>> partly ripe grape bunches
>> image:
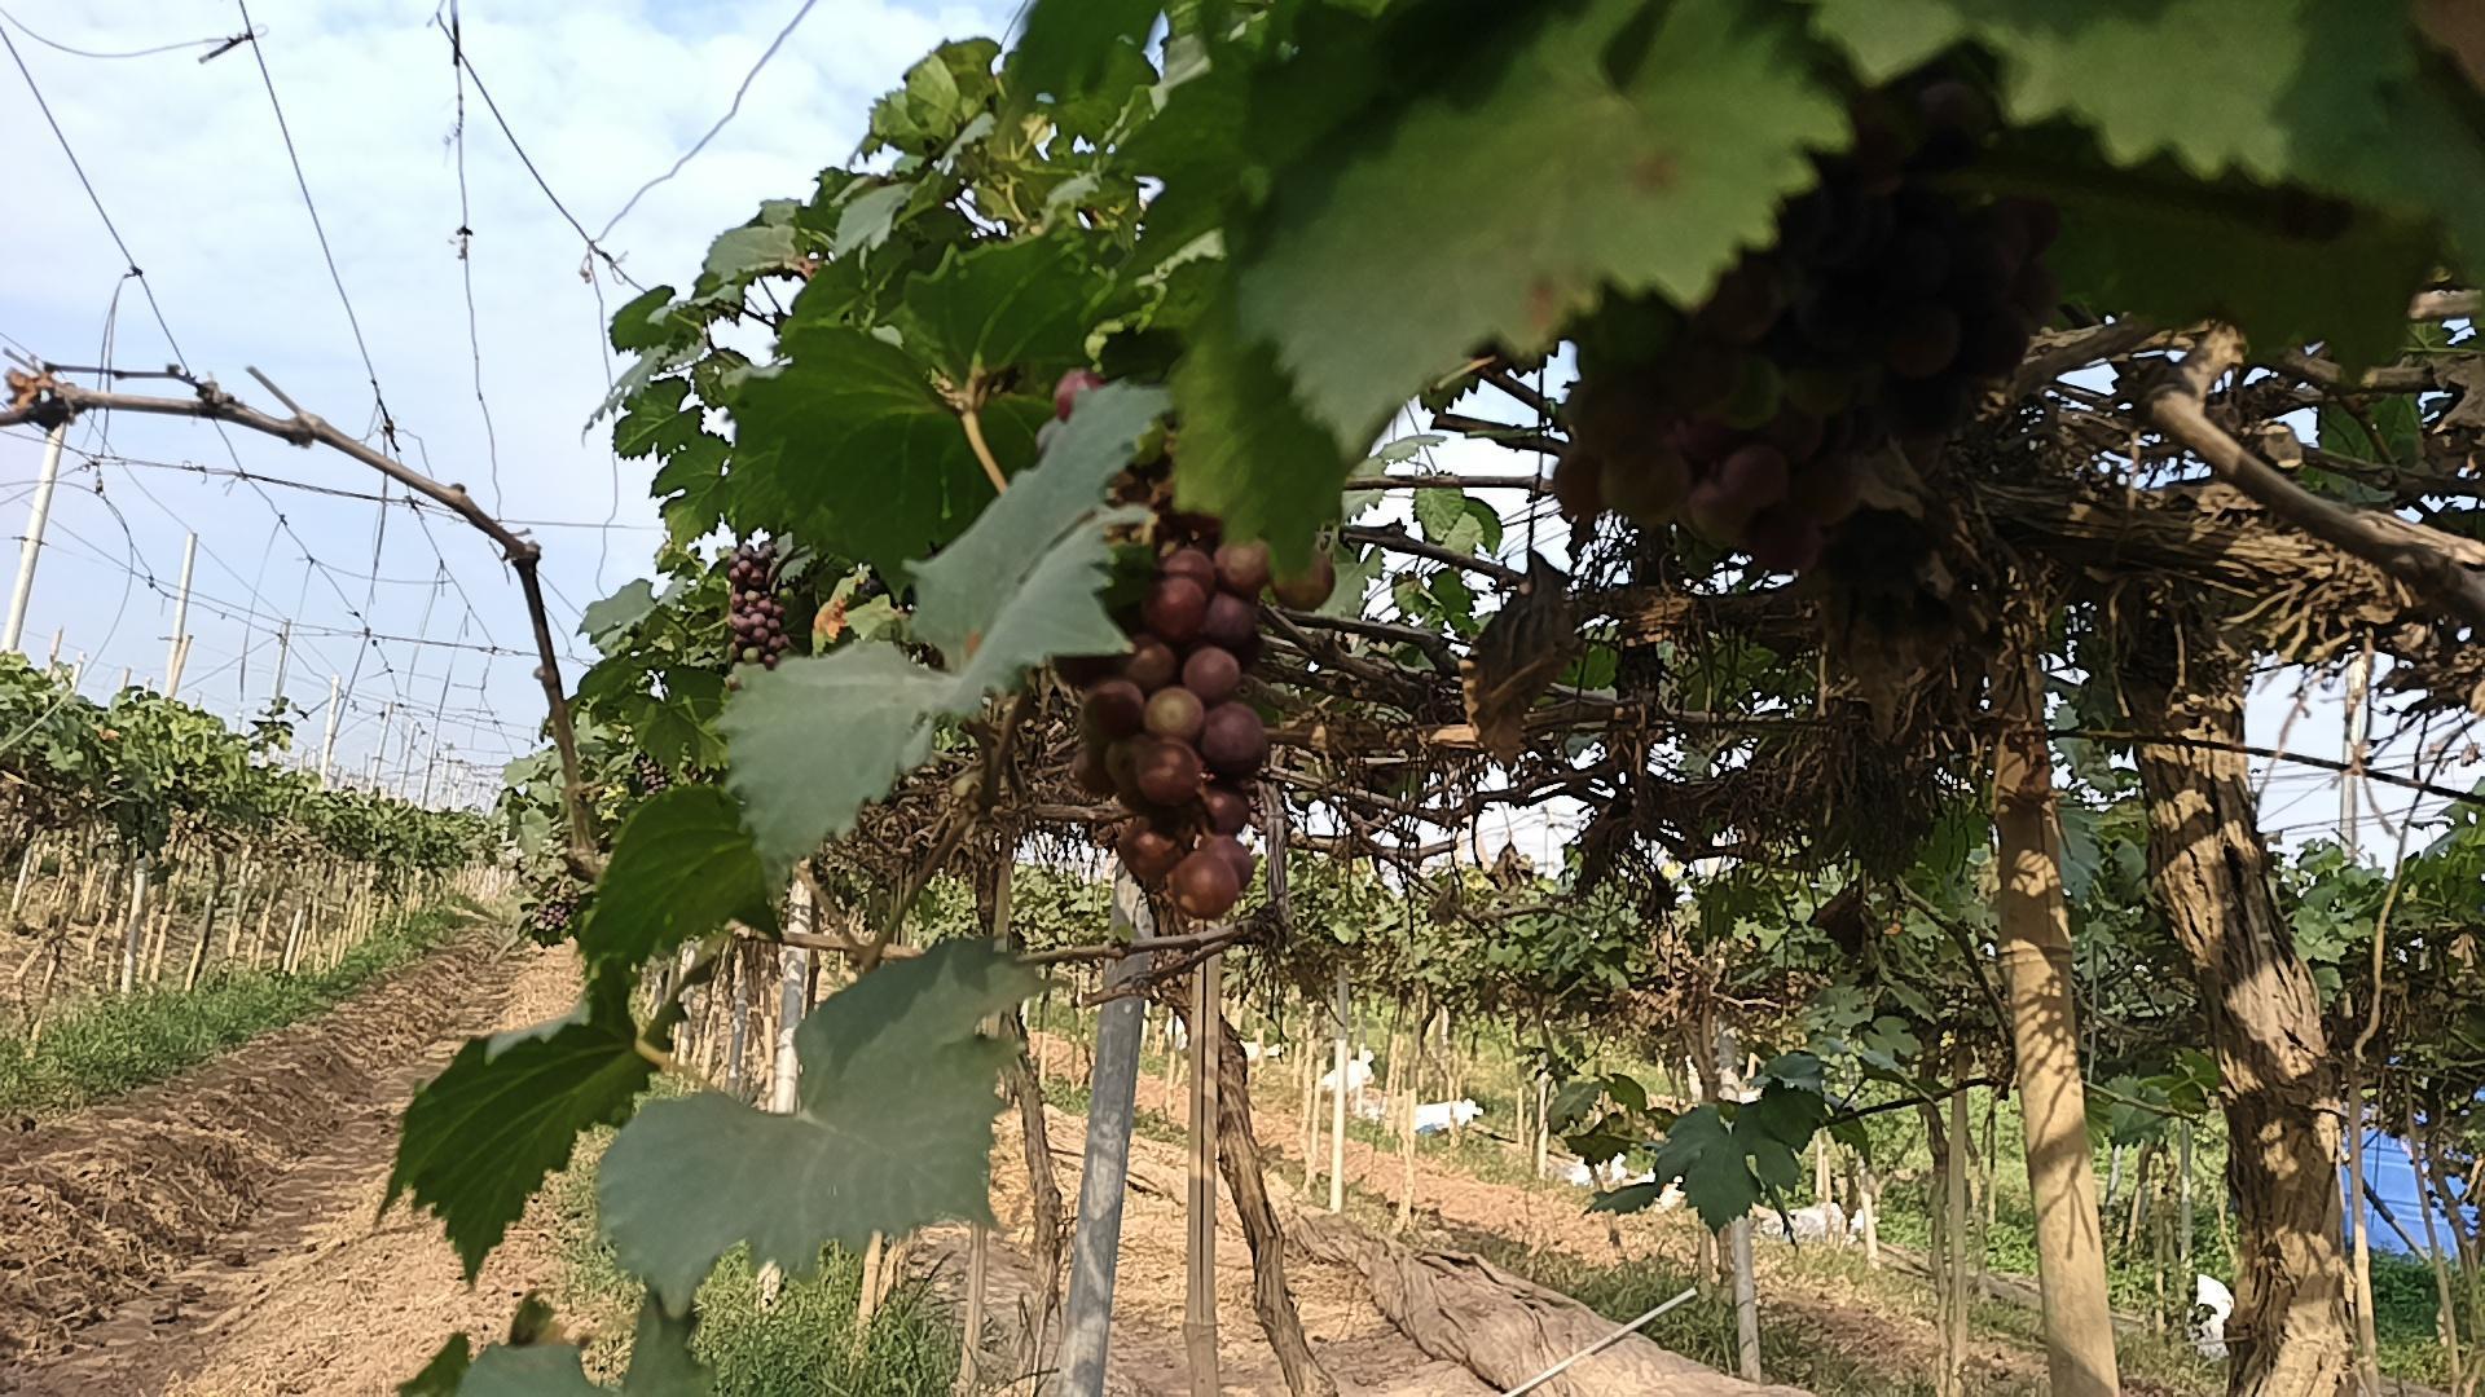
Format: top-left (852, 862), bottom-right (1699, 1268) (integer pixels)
top-left (726, 542), bottom-right (793, 667)
top-left (1059, 459), bottom-right (1336, 918)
